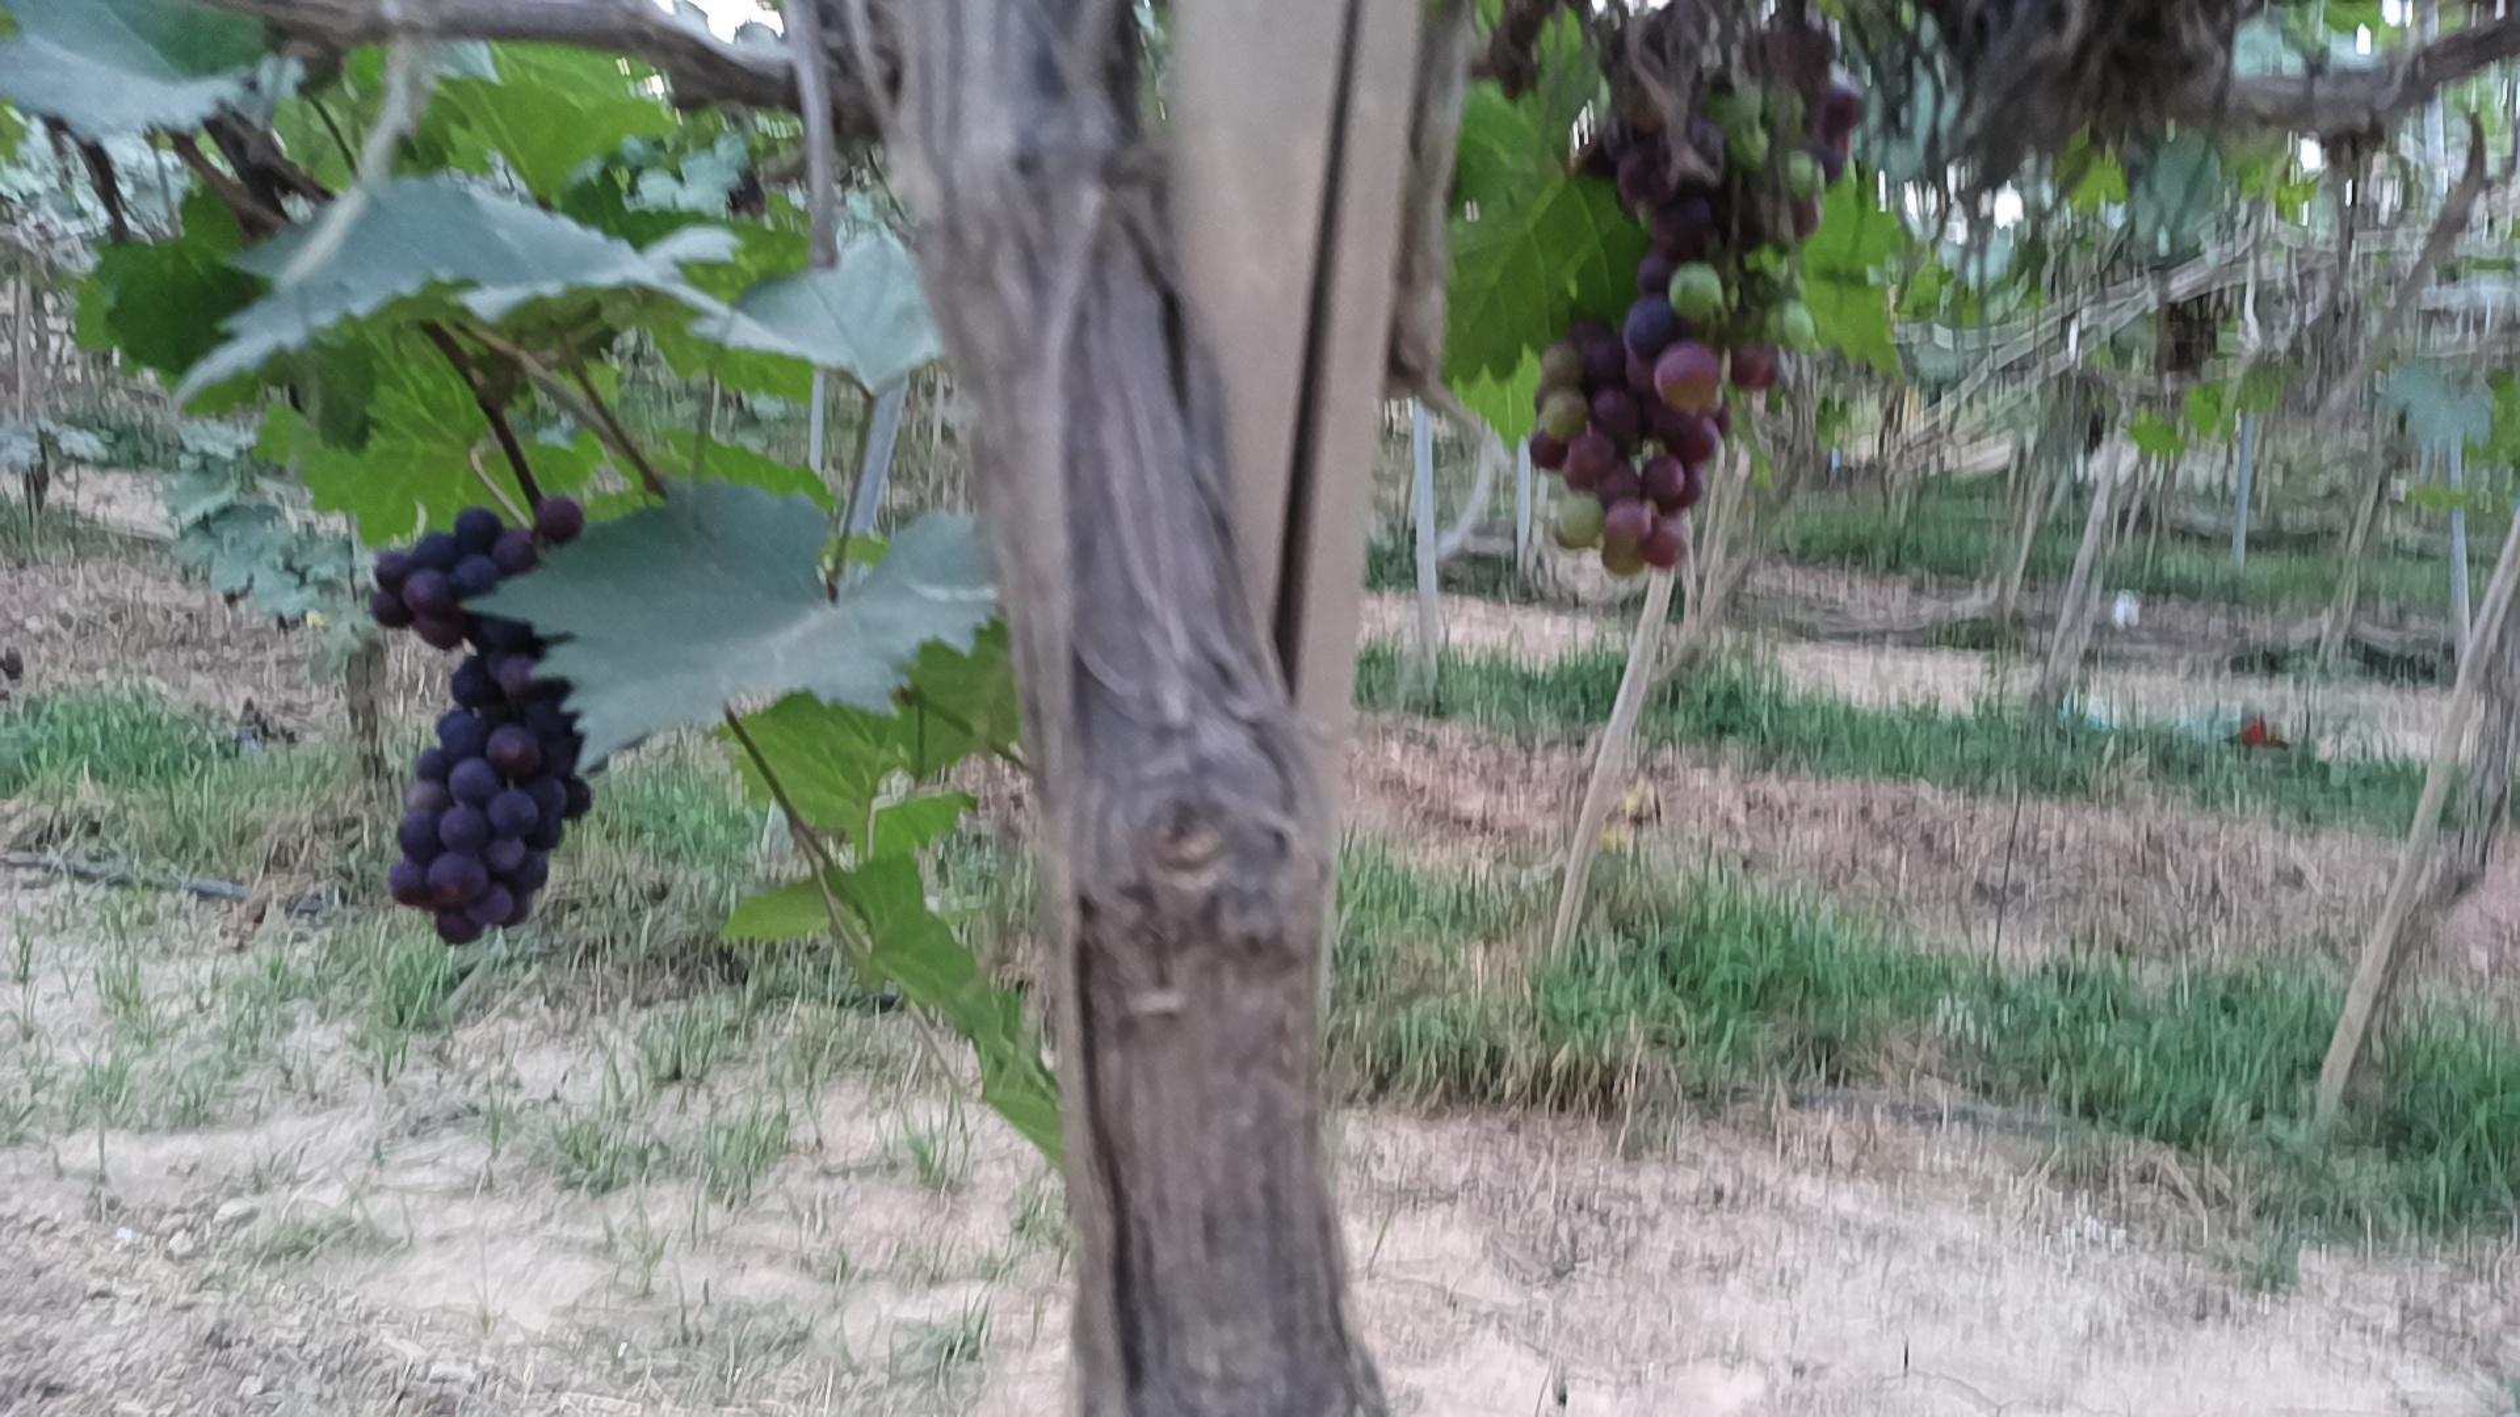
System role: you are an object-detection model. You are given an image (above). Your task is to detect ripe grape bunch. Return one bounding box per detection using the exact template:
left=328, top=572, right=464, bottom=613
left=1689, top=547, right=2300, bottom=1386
left=374, top=496, right=589, bottom=943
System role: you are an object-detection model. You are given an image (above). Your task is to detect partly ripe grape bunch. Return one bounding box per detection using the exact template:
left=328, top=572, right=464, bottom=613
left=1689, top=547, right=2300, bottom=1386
left=1530, top=0, right=1864, bottom=576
